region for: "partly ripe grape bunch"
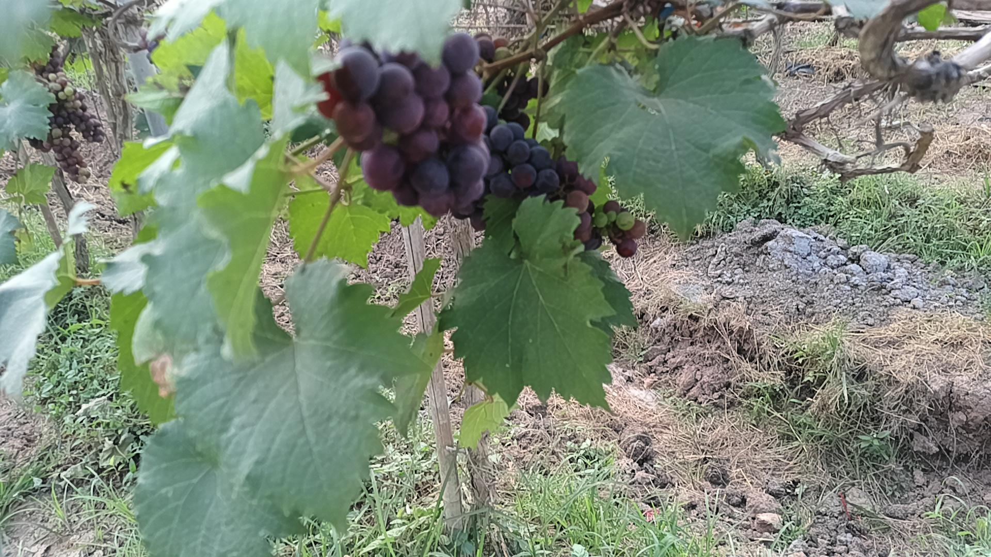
[470,29,646,257]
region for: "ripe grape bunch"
[318,33,490,219]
